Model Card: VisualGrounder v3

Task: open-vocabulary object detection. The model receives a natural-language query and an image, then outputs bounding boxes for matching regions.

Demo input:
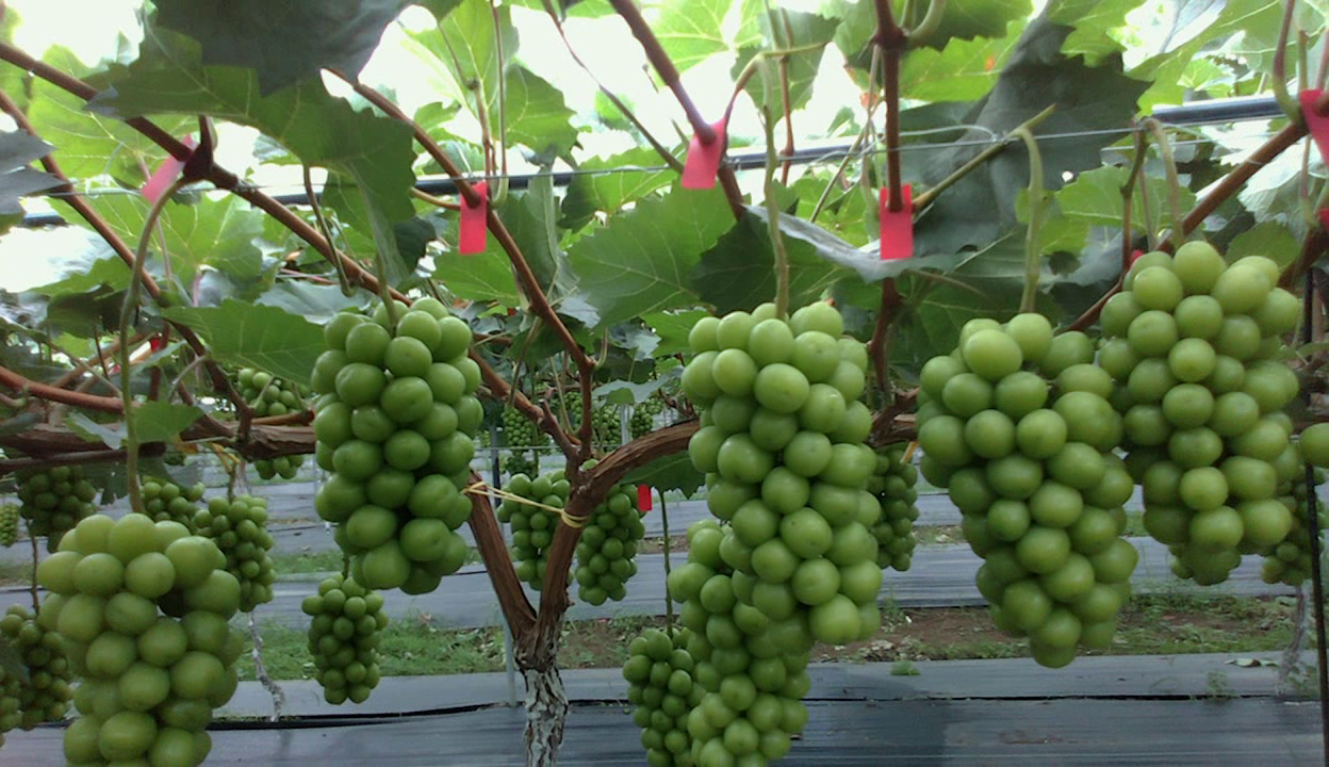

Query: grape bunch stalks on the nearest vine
[1153,126,1185,249]
[724,56,789,322]
[119,168,202,512]
[1014,128,1044,314]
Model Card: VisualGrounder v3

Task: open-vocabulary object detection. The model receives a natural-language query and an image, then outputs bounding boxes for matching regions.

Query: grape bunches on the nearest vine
[669,520,809,766]
[37,511,240,766]
[1100,240,1300,573]
[918,311,1138,666]
[683,300,883,651]
[312,296,485,593]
